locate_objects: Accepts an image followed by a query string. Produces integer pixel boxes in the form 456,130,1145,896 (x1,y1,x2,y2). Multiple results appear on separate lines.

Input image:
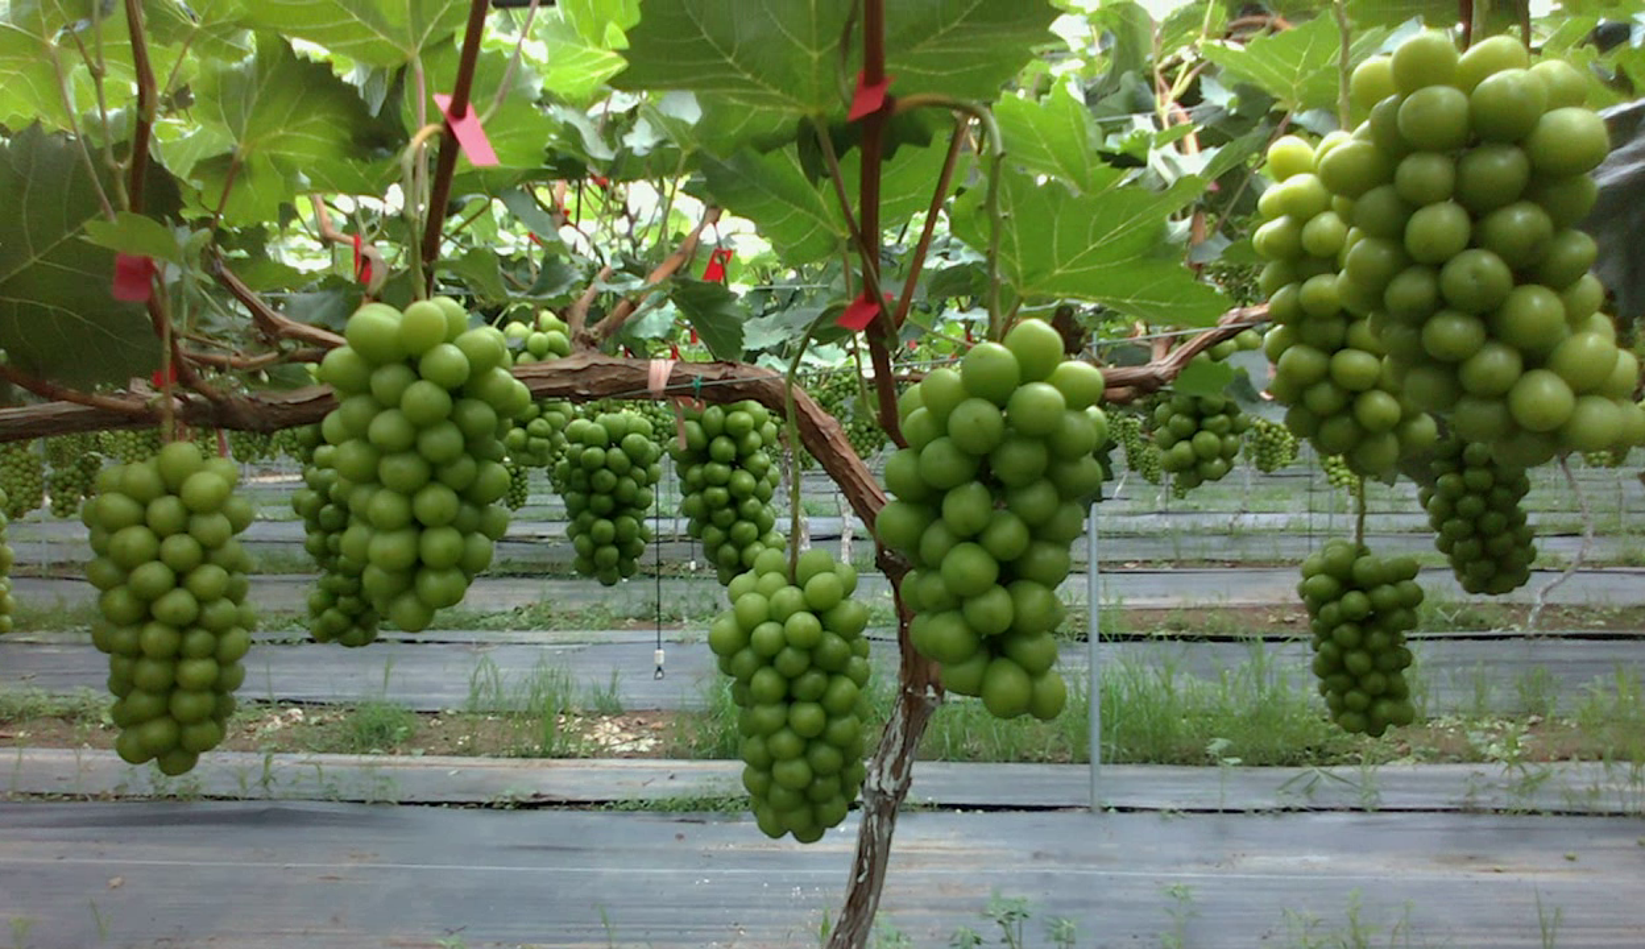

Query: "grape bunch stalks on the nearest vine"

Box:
784,301,850,585
1331,0,1350,132
153,265,173,446
401,123,443,301
894,92,1002,344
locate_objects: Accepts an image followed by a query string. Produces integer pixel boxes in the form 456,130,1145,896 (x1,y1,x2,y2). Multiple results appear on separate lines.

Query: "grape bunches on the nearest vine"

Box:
708,547,870,842
1254,128,1434,474
82,440,257,775
875,319,1107,720
322,294,531,633
1317,32,1644,468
